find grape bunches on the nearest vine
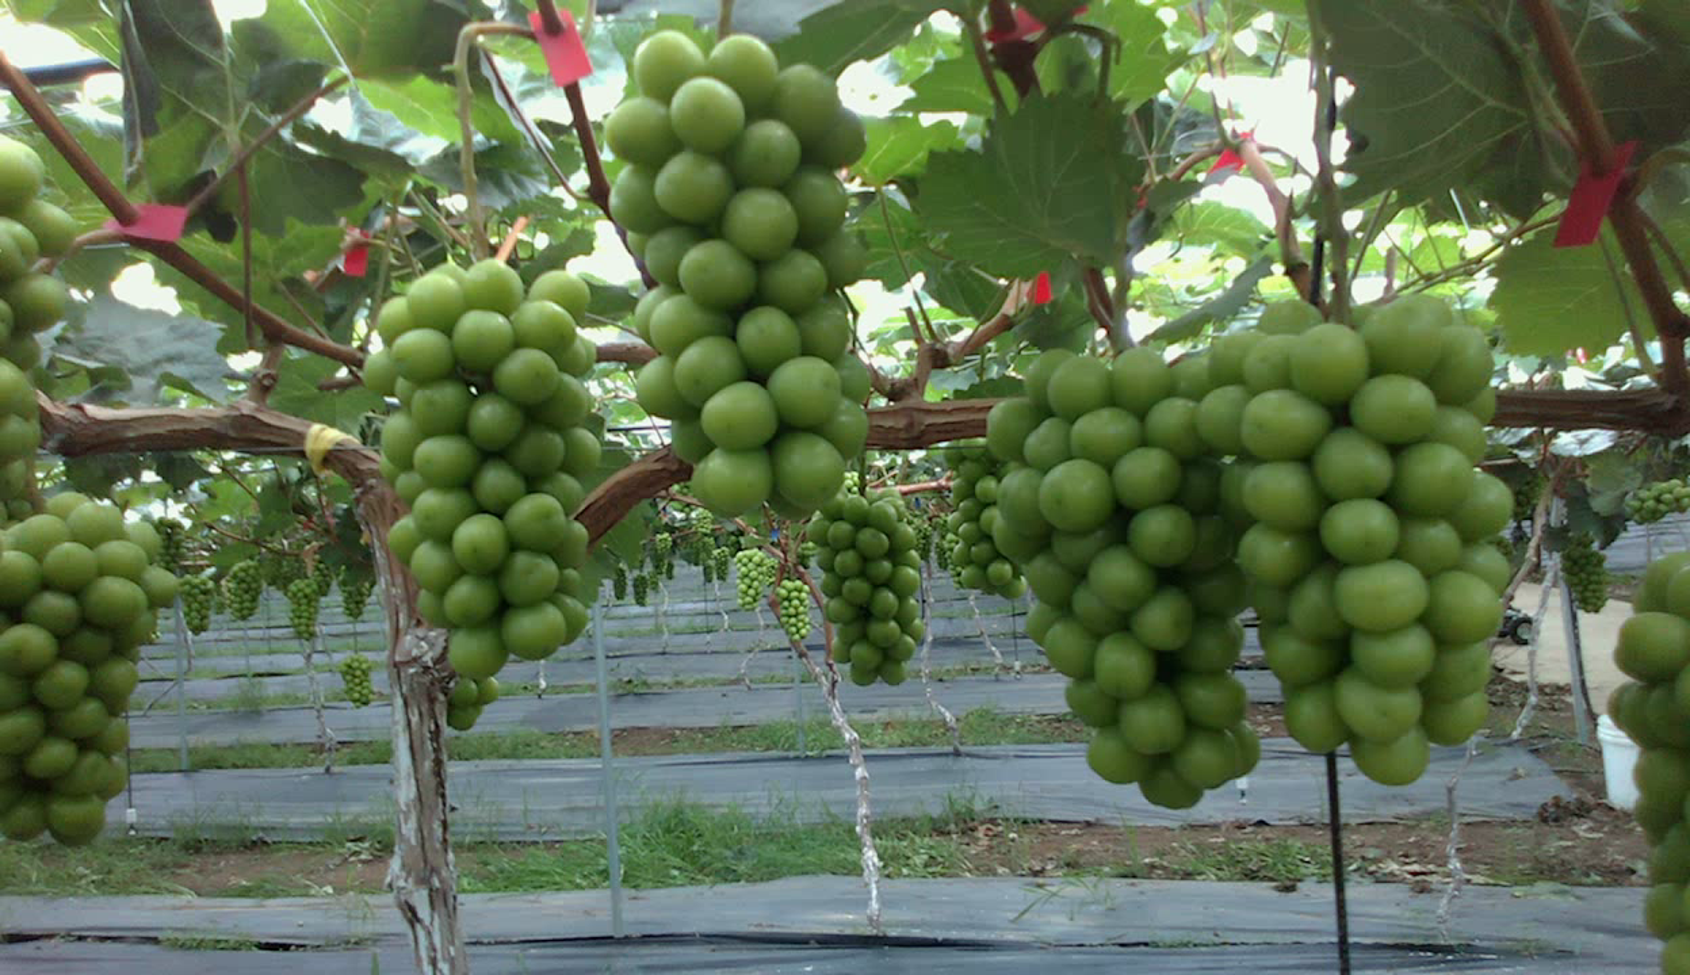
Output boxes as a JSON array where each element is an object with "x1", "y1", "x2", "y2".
[
  {"x1": 1194, "y1": 288, "x2": 1515, "y2": 787},
  {"x1": 363, "y1": 256, "x2": 600, "y2": 680},
  {"x1": 0, "y1": 493, "x2": 177, "y2": 848},
  {"x1": 1607, "y1": 548, "x2": 1687, "y2": 974},
  {"x1": 984, "y1": 344, "x2": 1261, "y2": 810},
  {"x1": 604, "y1": 30, "x2": 872, "y2": 524},
  {"x1": 0, "y1": 134, "x2": 77, "y2": 502}
]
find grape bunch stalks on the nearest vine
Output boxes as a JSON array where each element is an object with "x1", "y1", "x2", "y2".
[
  {"x1": 718, "y1": 1, "x2": 731, "y2": 42},
  {"x1": 1307, "y1": 0, "x2": 1350, "y2": 325},
  {"x1": 23, "y1": 477, "x2": 49, "y2": 515},
  {"x1": 1035, "y1": 22, "x2": 1125, "y2": 357},
  {"x1": 452, "y1": 23, "x2": 539, "y2": 260}
]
